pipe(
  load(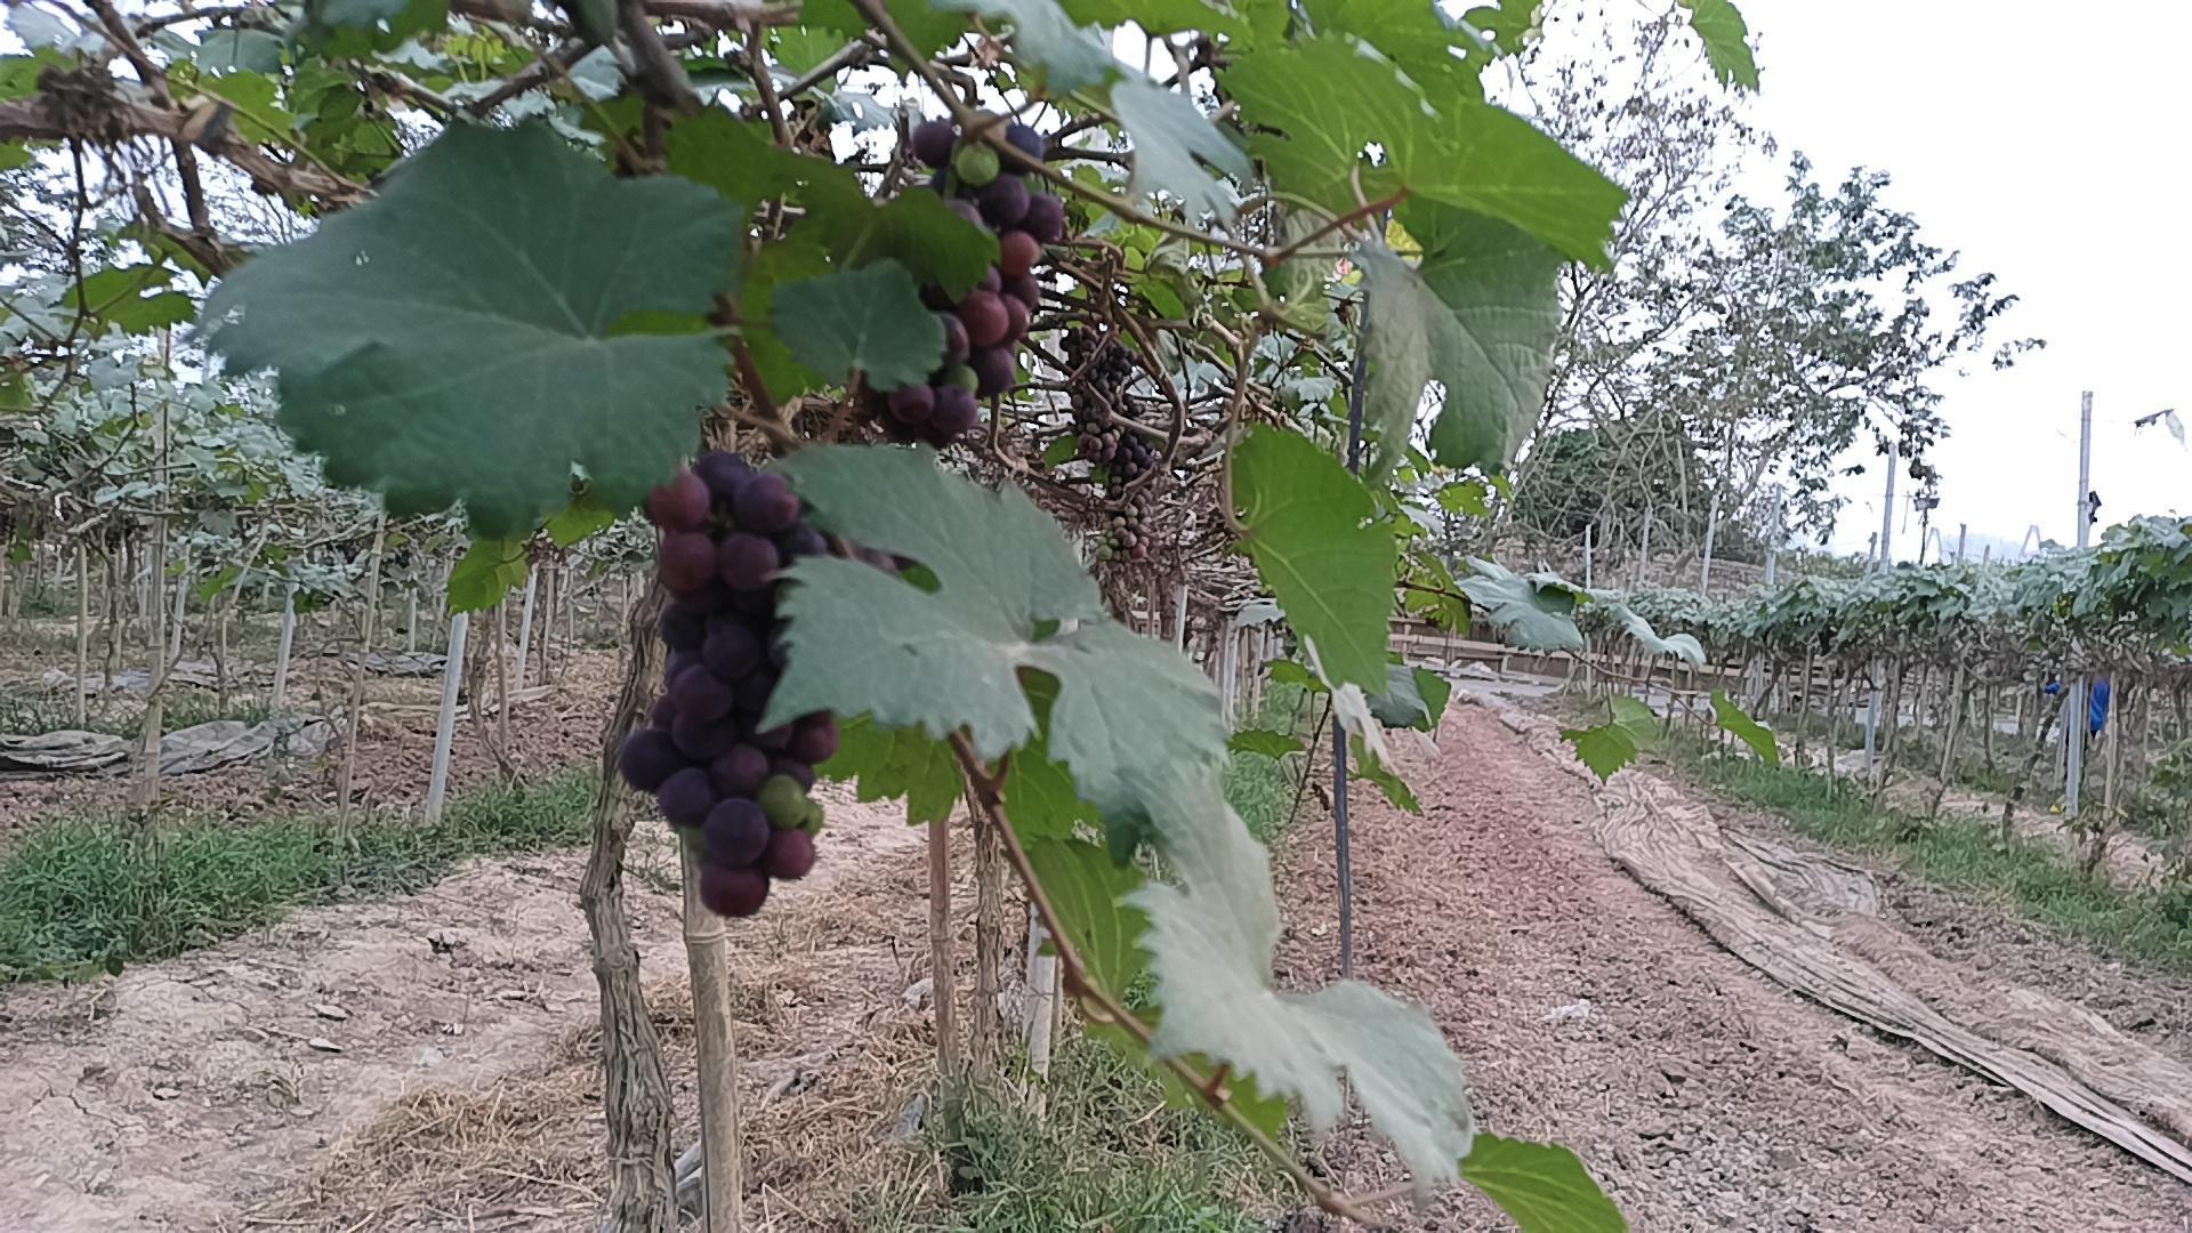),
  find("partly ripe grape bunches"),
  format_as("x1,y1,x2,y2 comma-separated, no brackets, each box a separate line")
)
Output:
1063,328,1160,571
869,119,1066,448
618,452,837,916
